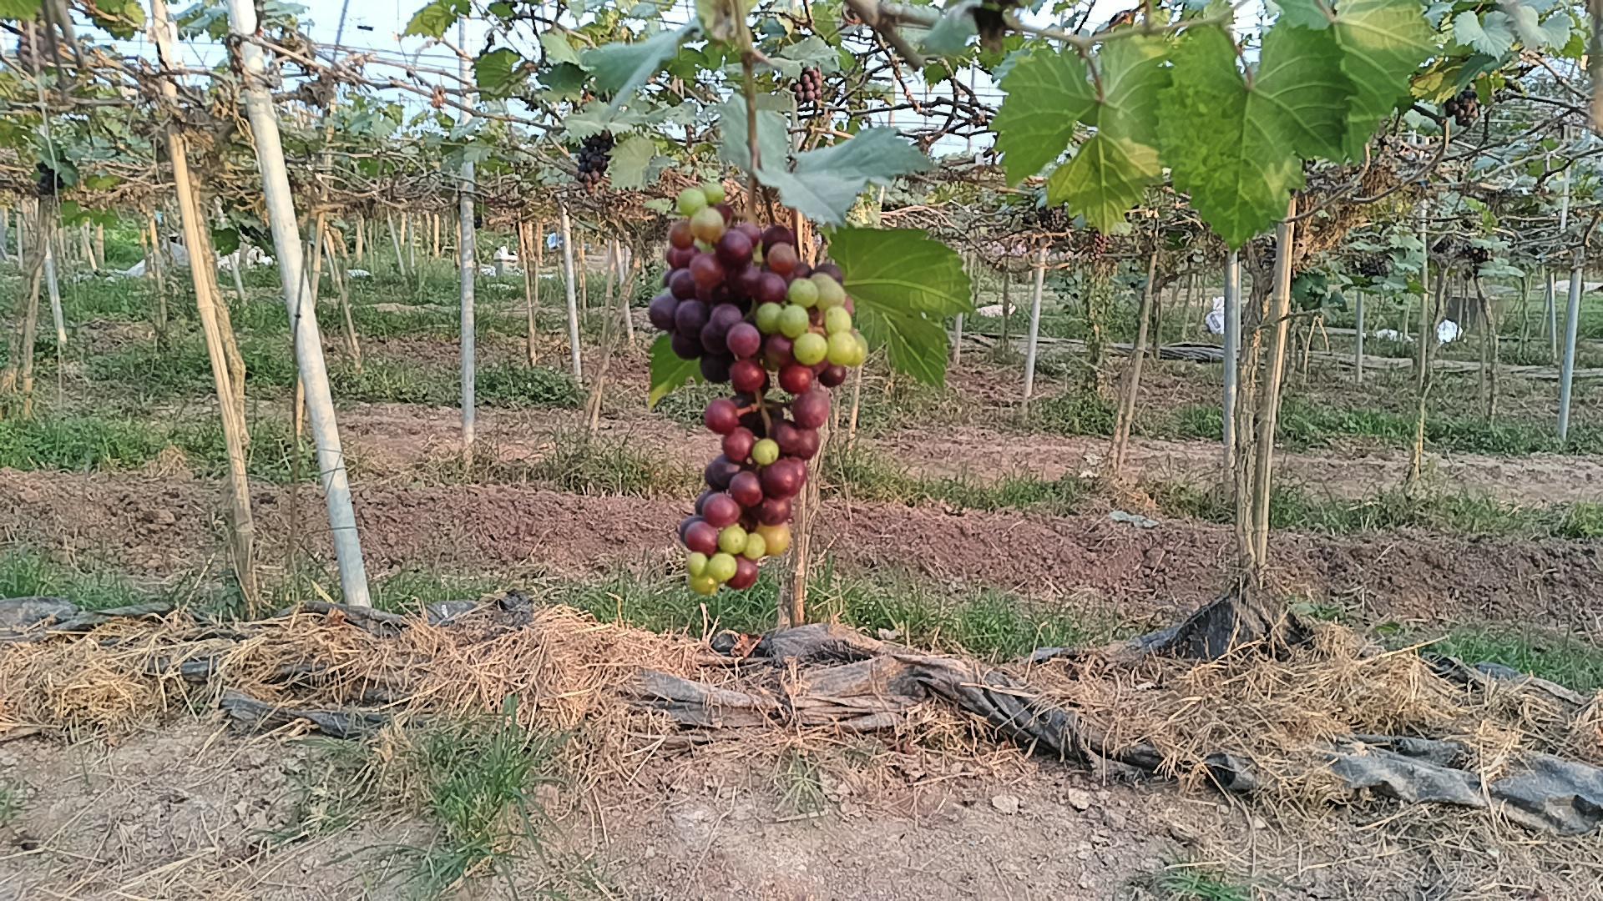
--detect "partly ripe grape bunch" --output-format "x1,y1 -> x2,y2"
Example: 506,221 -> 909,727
650,184 -> 867,594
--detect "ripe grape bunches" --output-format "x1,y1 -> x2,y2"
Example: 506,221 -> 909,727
35,161 -> 65,199
575,126 -> 620,197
